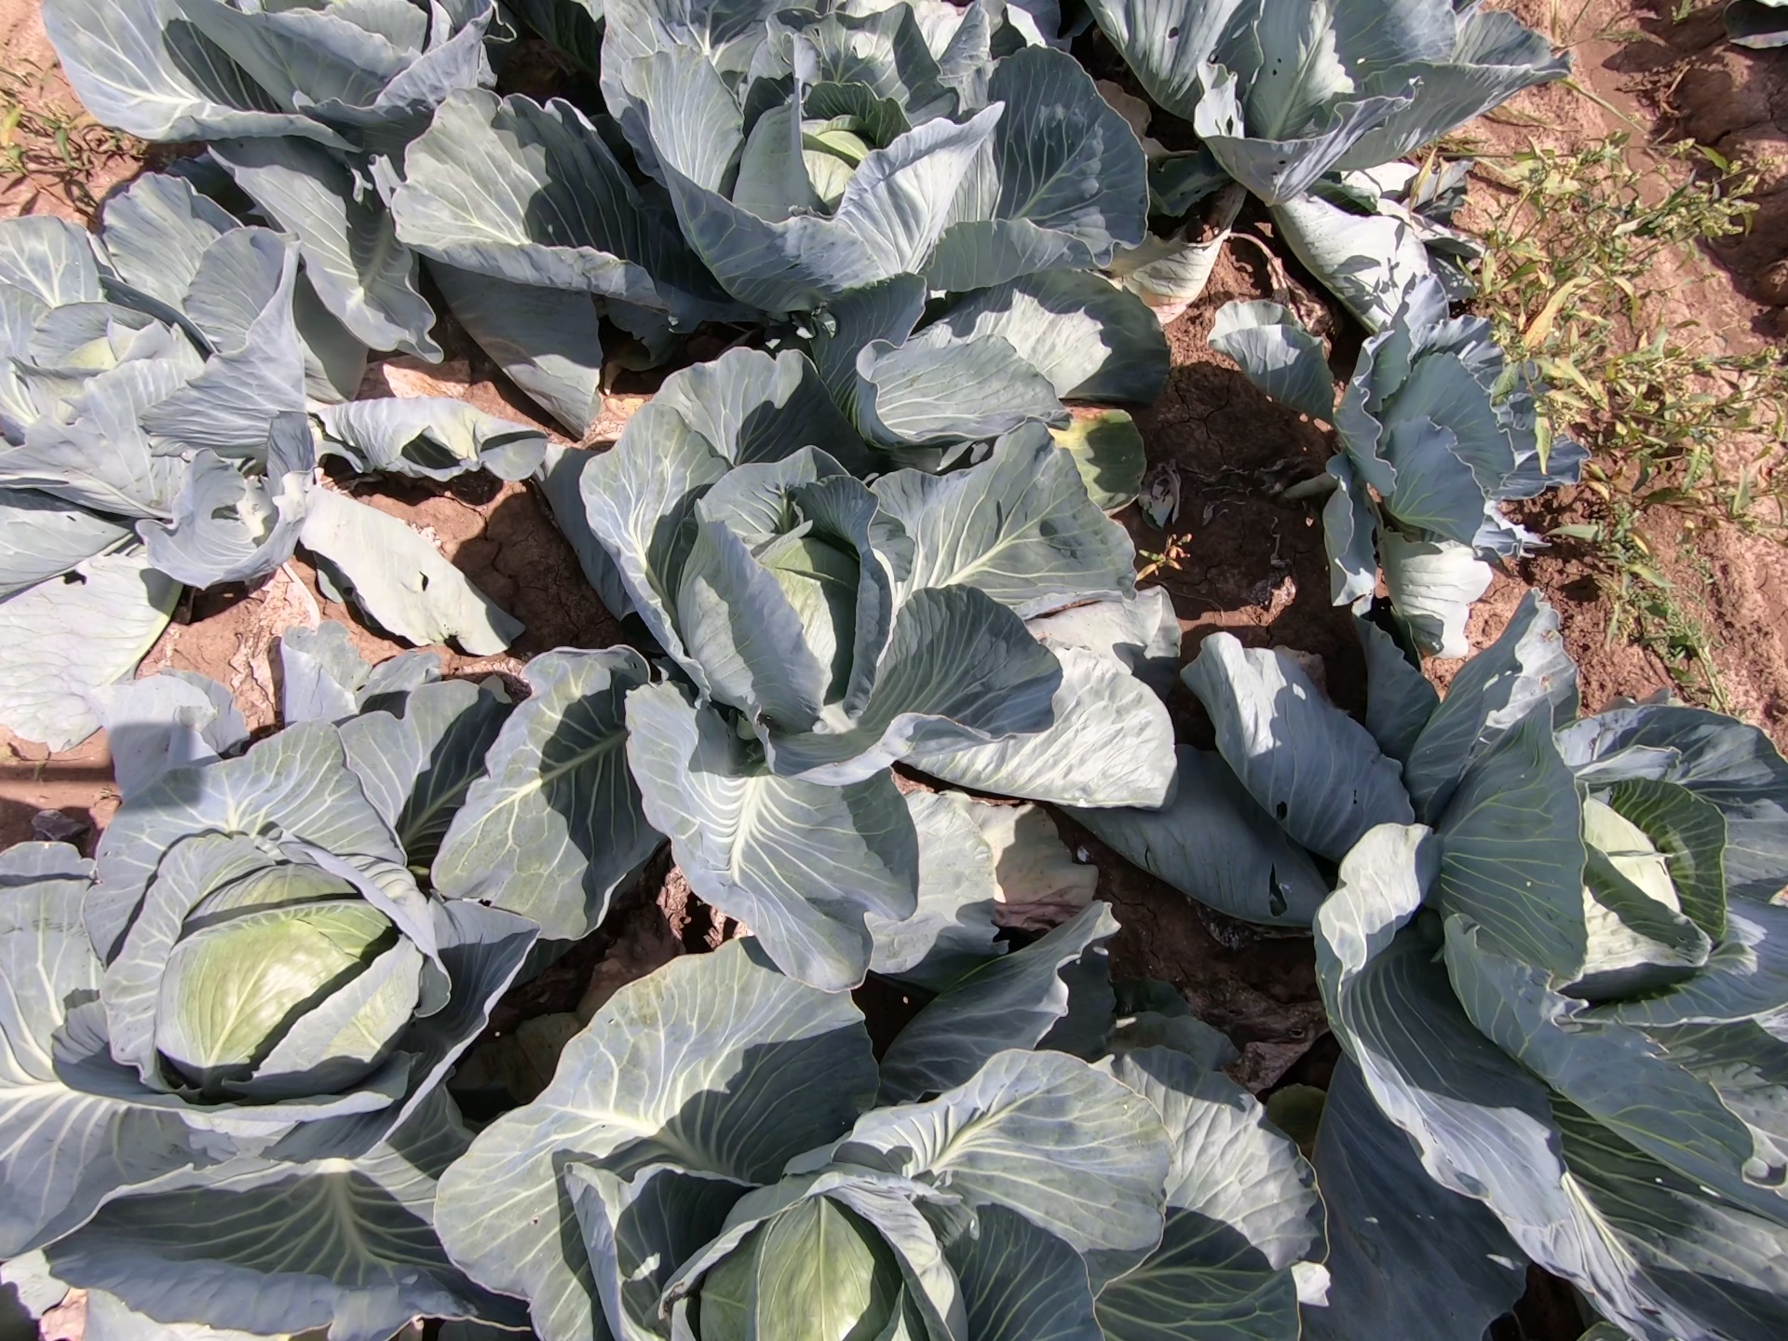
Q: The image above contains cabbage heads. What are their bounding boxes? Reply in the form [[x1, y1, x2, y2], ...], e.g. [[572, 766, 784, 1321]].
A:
[[1456, 767, 1686, 999], [698, 1171, 967, 1338], [40, 327, 215, 453], [738, 105, 893, 260], [119, 856, 429, 1104], [687, 525, 897, 717]]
